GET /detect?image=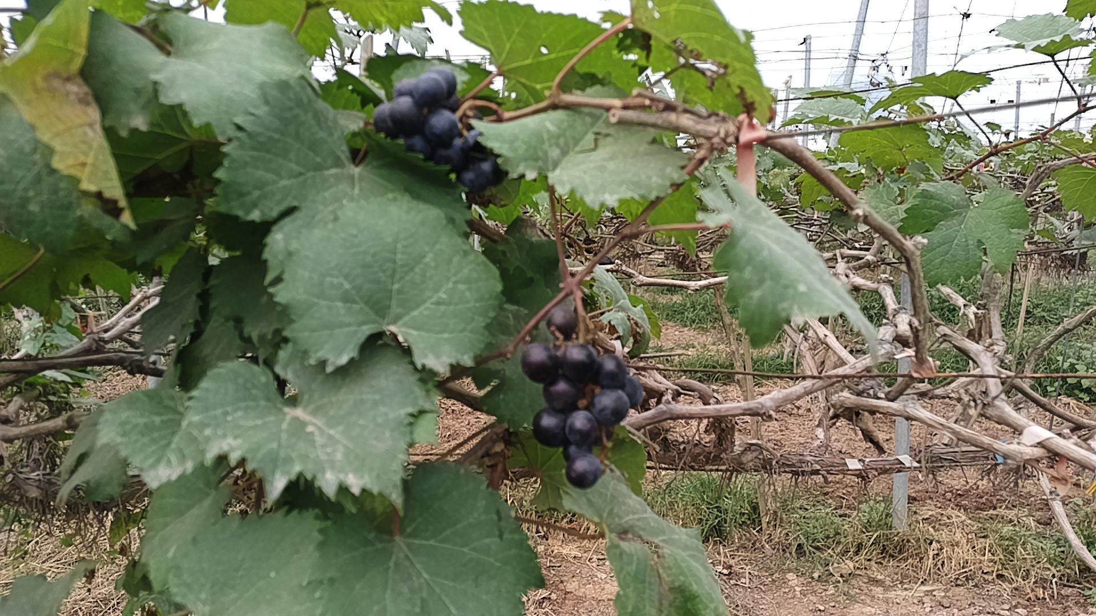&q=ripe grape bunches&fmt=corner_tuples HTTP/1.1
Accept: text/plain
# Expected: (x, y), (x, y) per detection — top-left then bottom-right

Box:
(520, 298), (644, 488)
(373, 67), (507, 204)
